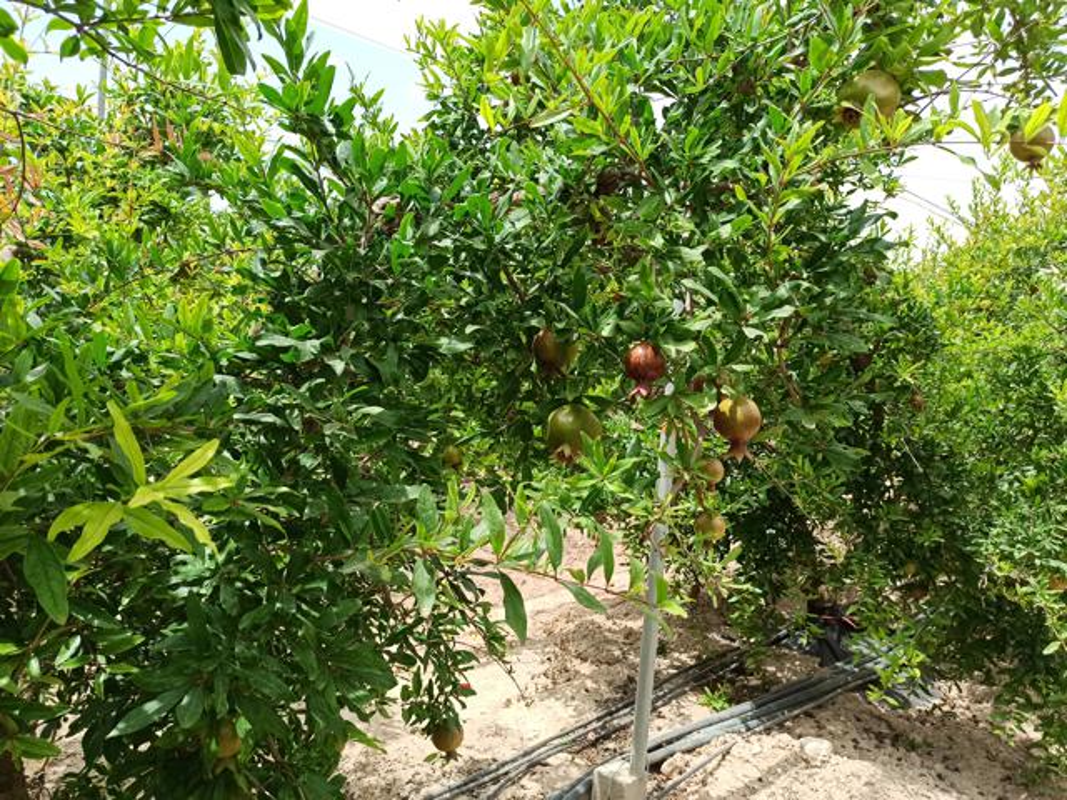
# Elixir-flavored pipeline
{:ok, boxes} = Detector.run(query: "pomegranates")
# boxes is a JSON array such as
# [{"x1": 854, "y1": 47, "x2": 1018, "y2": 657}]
[
  {"x1": 532, "y1": 325, "x2": 579, "y2": 375},
  {"x1": 834, "y1": 70, "x2": 902, "y2": 133},
  {"x1": 705, "y1": 458, "x2": 725, "y2": 492},
  {"x1": 694, "y1": 512, "x2": 725, "y2": 533},
  {"x1": 549, "y1": 402, "x2": 604, "y2": 470},
  {"x1": 212, "y1": 720, "x2": 242, "y2": 777},
  {"x1": 909, "y1": 393, "x2": 924, "y2": 410},
  {"x1": 624, "y1": 340, "x2": 667, "y2": 402},
  {"x1": 443, "y1": 445, "x2": 462, "y2": 465},
  {"x1": 1009, "y1": 127, "x2": 1055, "y2": 172},
  {"x1": 714, "y1": 397, "x2": 762, "y2": 467},
  {"x1": 432, "y1": 730, "x2": 463, "y2": 765}
]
